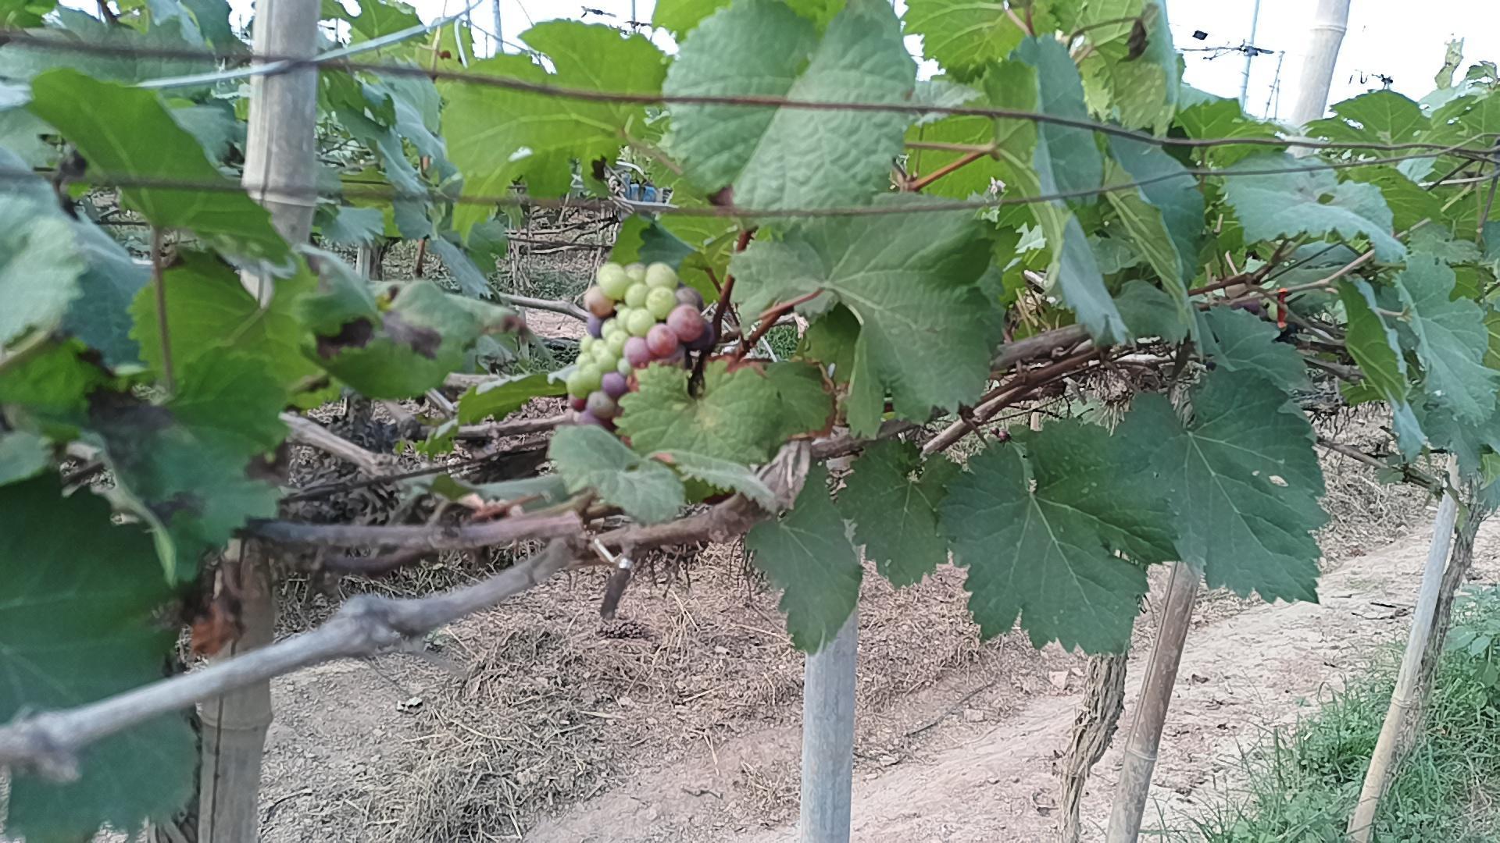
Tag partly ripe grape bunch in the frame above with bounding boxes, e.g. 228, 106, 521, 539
566, 262, 714, 433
